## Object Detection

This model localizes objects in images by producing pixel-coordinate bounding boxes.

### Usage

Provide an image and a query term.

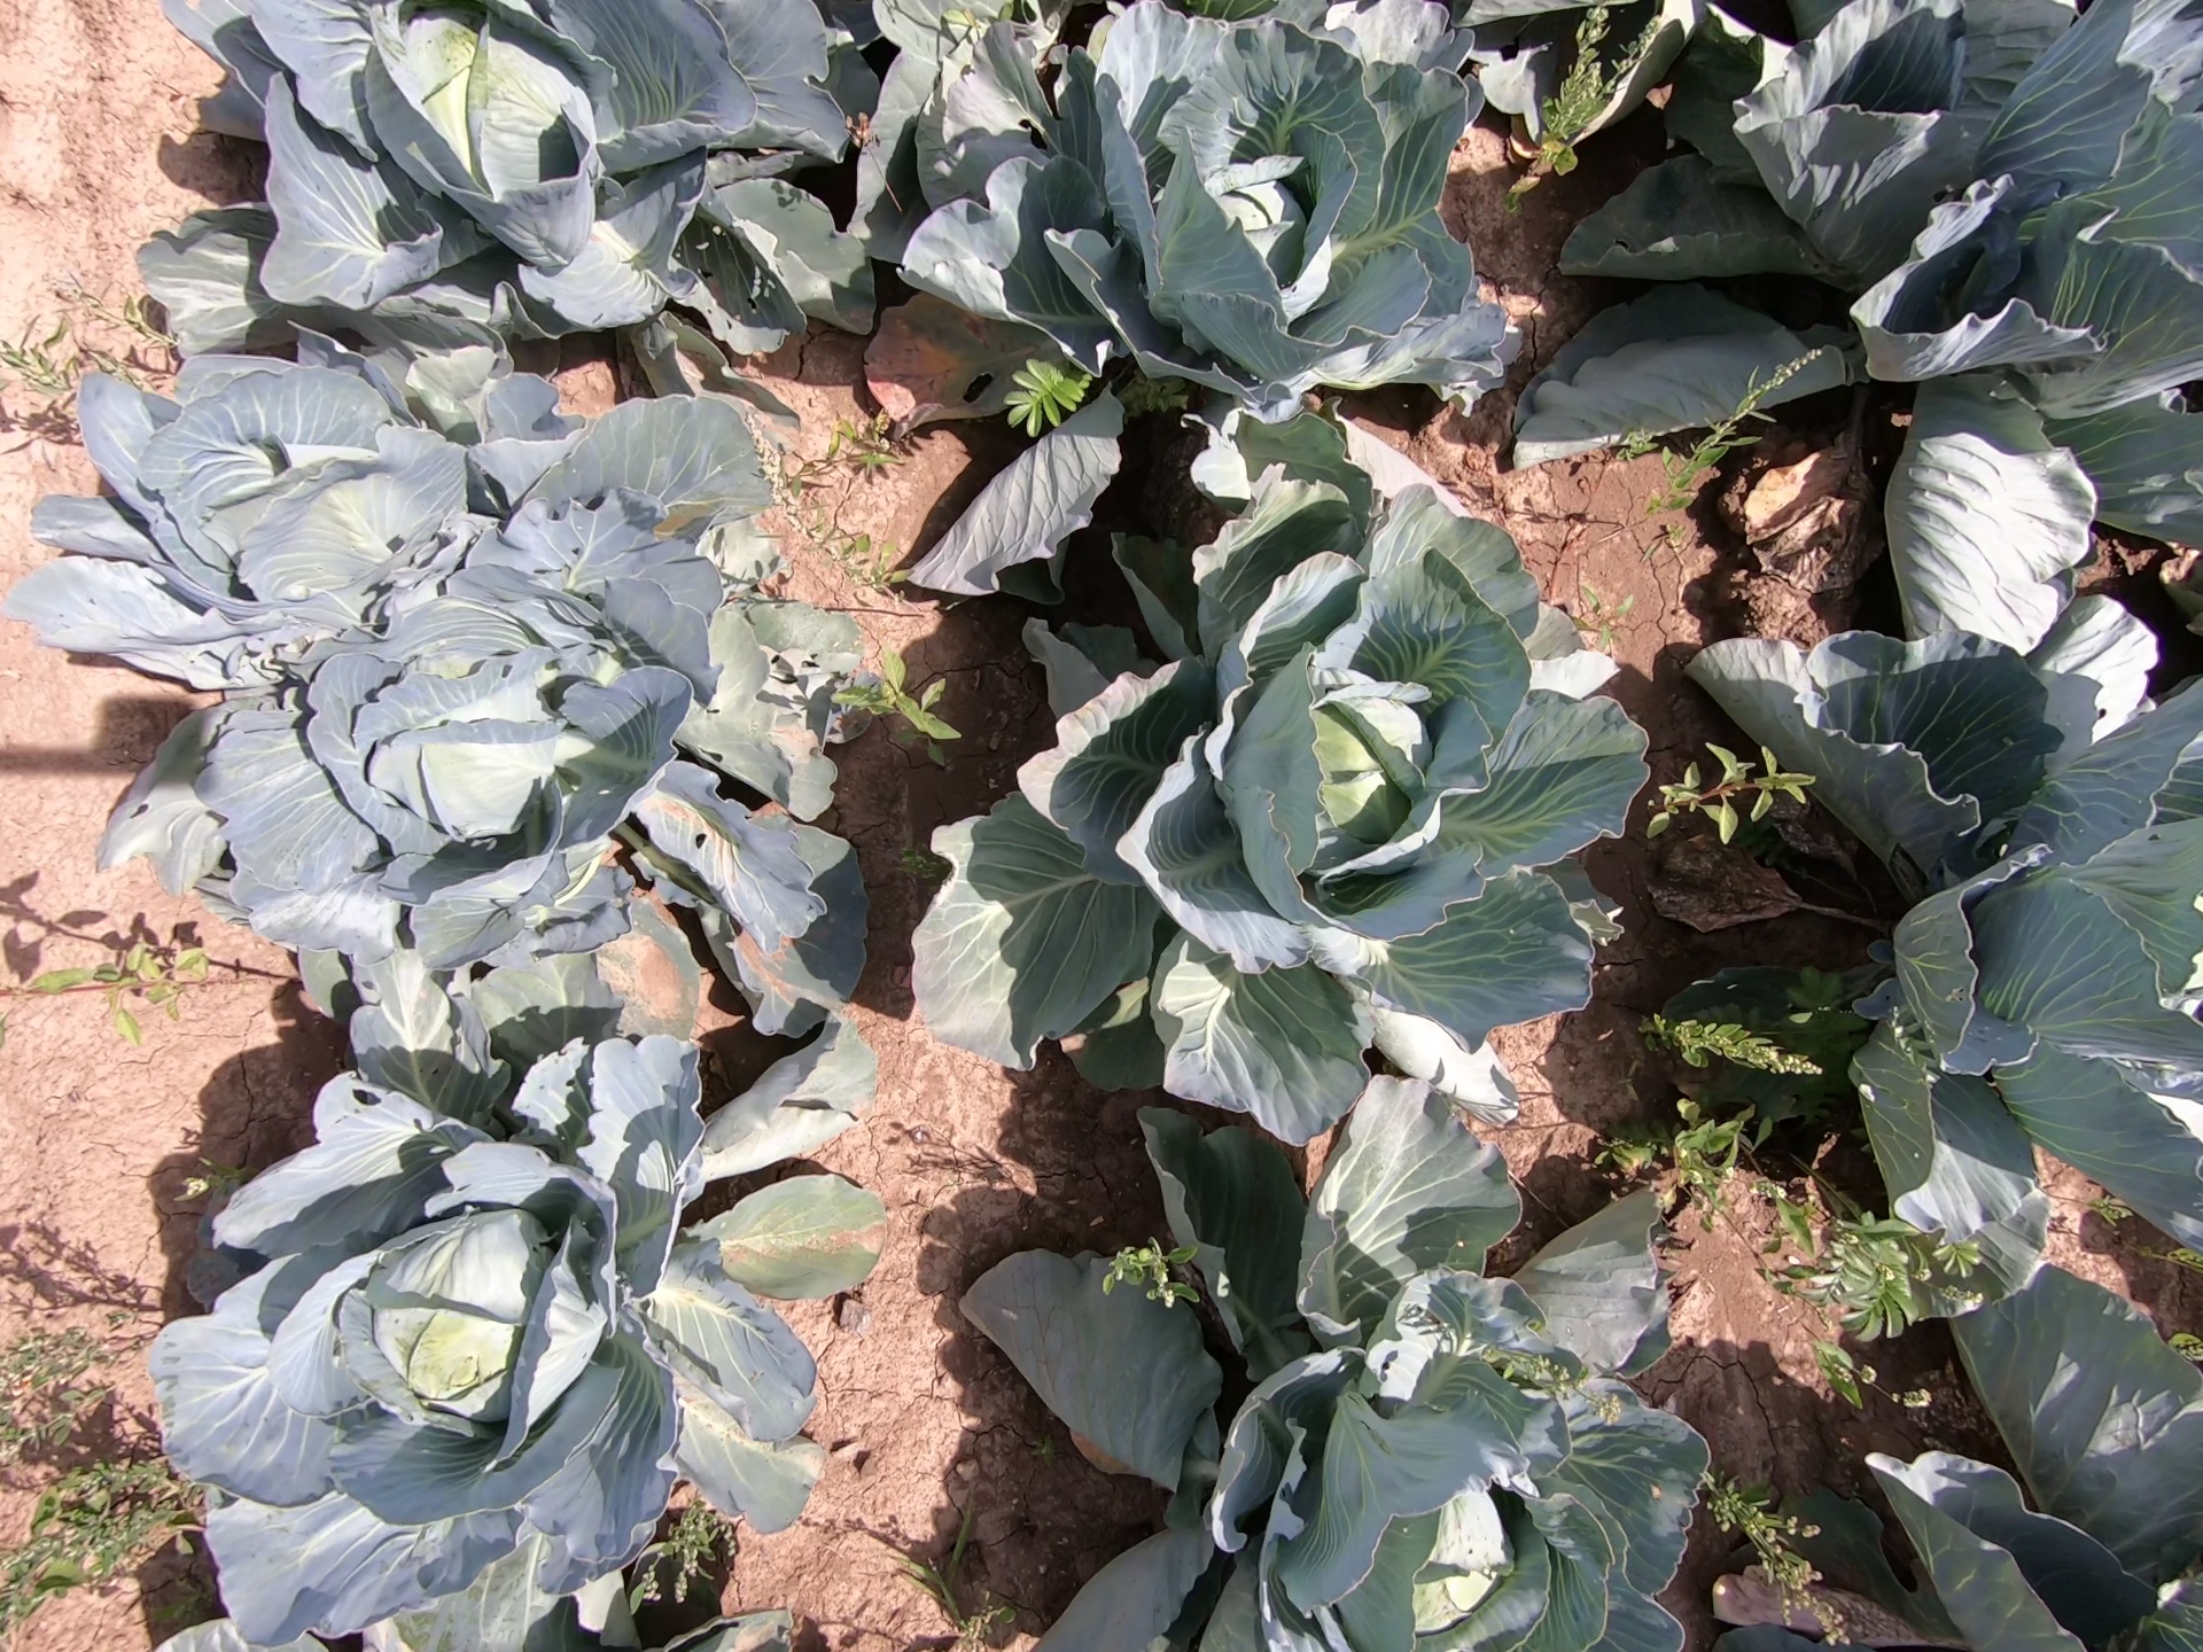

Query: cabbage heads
[1159,162,1316,304]
[373,653,561,833]
[1352,1466,1511,1643]
[2011,855,2201,1024]
[1259,679,1434,857]
[366,6,598,218]
[360,1219,583,1429]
